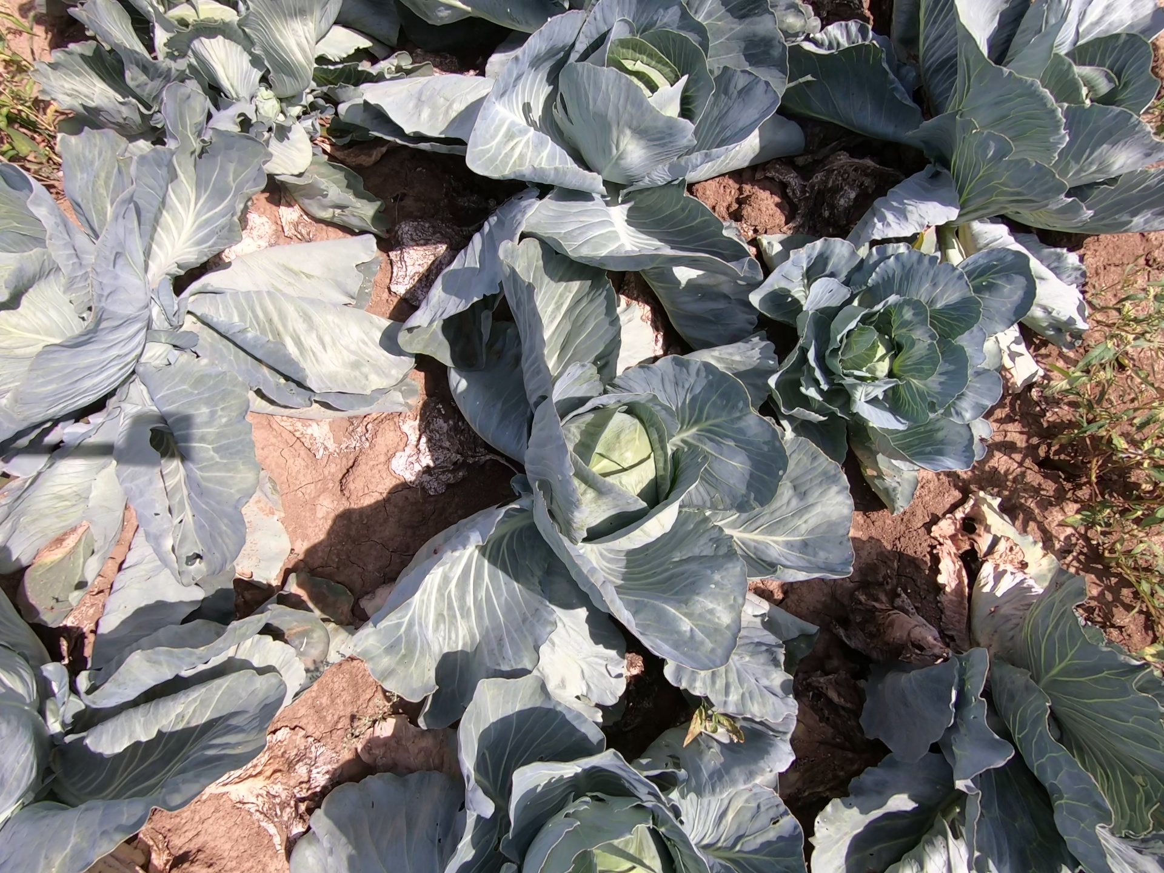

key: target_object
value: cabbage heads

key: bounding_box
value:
[550,404,662,532]
[155,1,250,89]
[523,802,680,872]
[841,327,898,381]
[1006,64,1099,157]
[1,261,80,400]
[564,53,680,172]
